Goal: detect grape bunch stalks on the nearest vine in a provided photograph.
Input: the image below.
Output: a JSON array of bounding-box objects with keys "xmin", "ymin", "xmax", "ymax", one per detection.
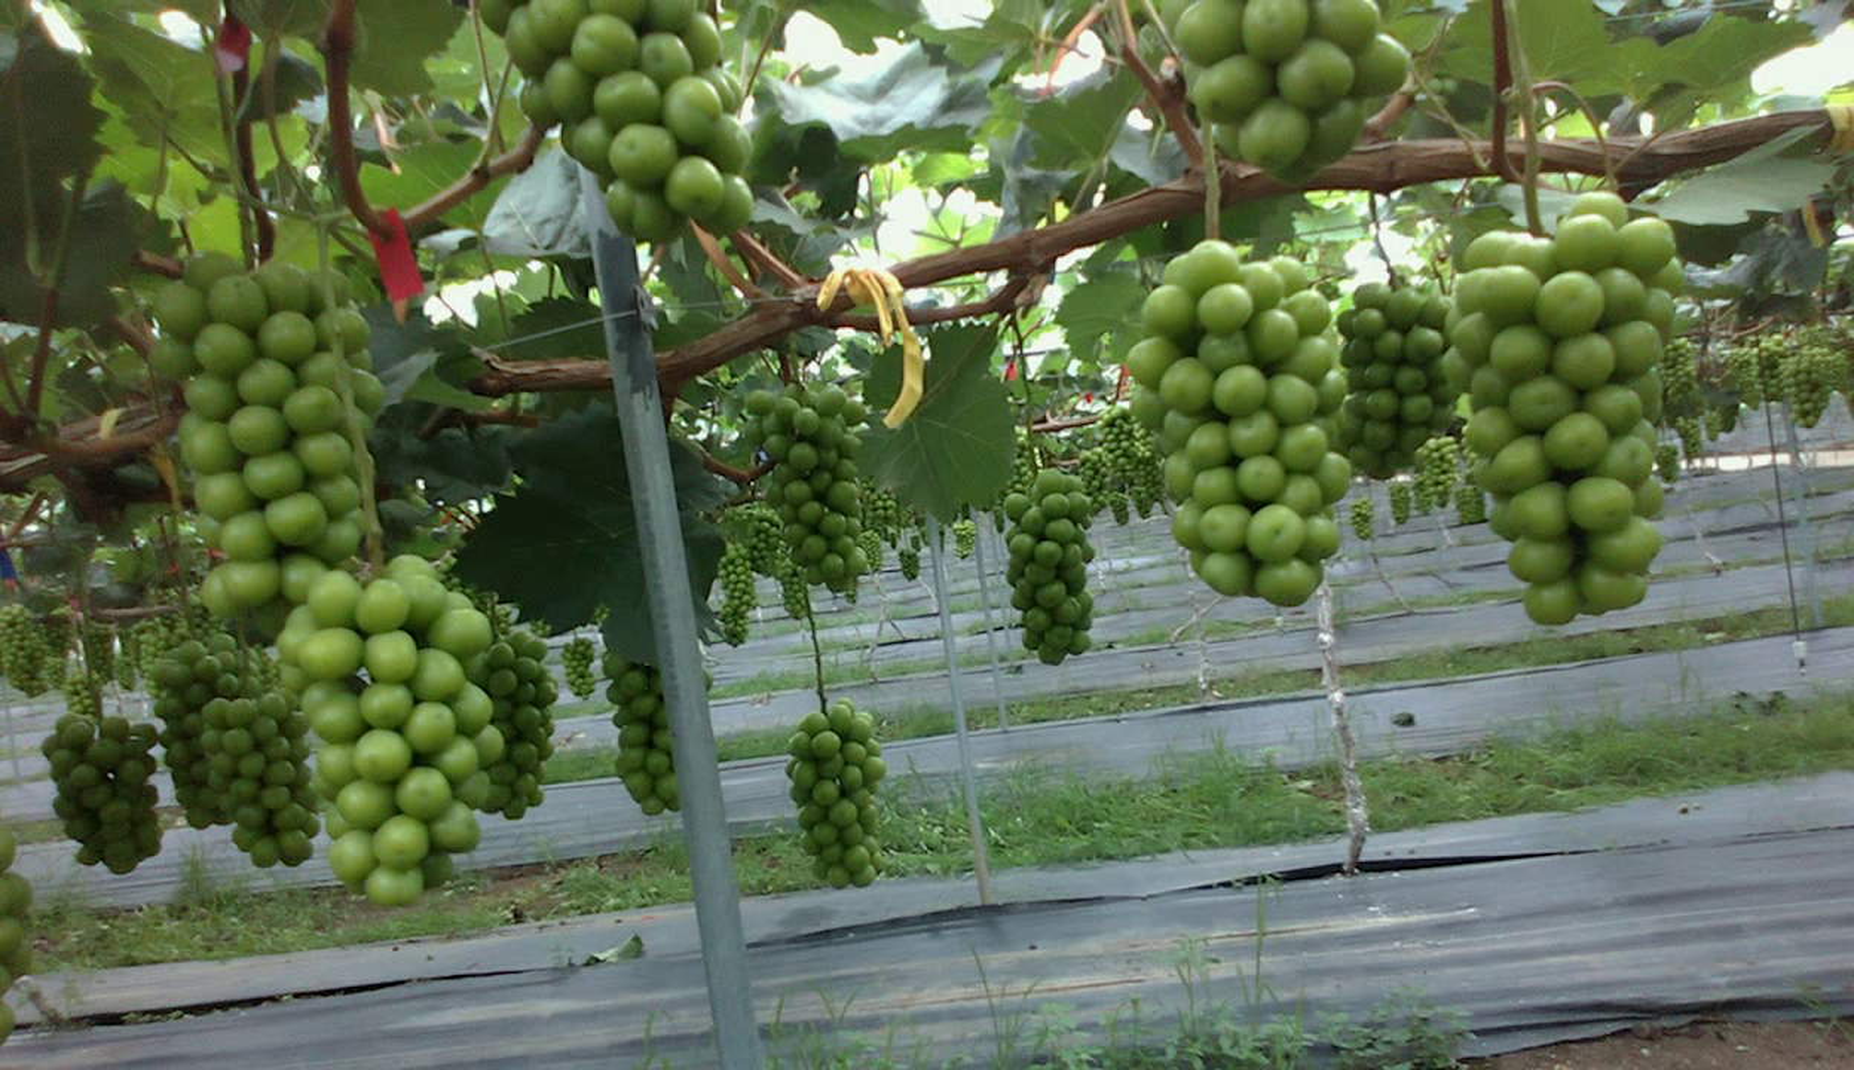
[
  {"xmin": 315, "ymin": 210, "xmax": 383, "ymax": 577},
  {"xmin": 1502, "ymin": 1, "xmax": 1545, "ymax": 233},
  {"xmin": 233, "ymin": 198, "xmax": 251, "ymax": 262},
  {"xmin": 1200, "ymin": 122, "xmax": 1218, "ymax": 238}
]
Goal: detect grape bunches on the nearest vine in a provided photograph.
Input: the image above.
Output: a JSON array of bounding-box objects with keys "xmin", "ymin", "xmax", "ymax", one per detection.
[
  {"xmin": 480, "ymin": 0, "xmax": 753, "ymax": 244},
  {"xmin": 1122, "ymin": 241, "xmax": 1353, "ymax": 609},
  {"xmin": 1162, "ymin": 0, "xmax": 1408, "ymax": 186},
  {"xmin": 1444, "ymin": 190, "xmax": 1685, "ymax": 626},
  {"xmin": 147, "ymin": 248, "xmax": 382, "ymax": 636},
  {"xmin": 275, "ymin": 556, "xmax": 507, "ymax": 902}
]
